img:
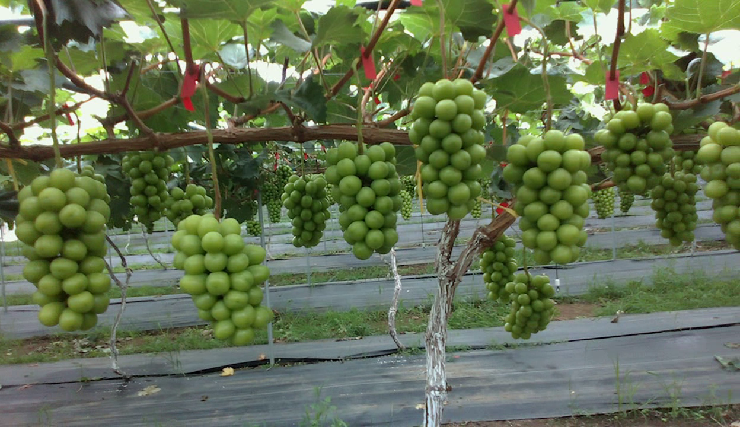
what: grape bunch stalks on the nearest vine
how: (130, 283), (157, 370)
(351, 57), (363, 154)
(200, 62), (221, 219)
(620, 81), (639, 110)
(437, 0), (448, 78)
(36, 1), (63, 167)
(522, 18), (552, 130)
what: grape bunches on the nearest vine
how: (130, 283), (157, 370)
(410, 79), (486, 221)
(323, 142), (402, 260)
(502, 129), (592, 265)
(697, 122), (739, 250)
(15, 168), (113, 332)
(169, 212), (275, 346)
(594, 103), (674, 194)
